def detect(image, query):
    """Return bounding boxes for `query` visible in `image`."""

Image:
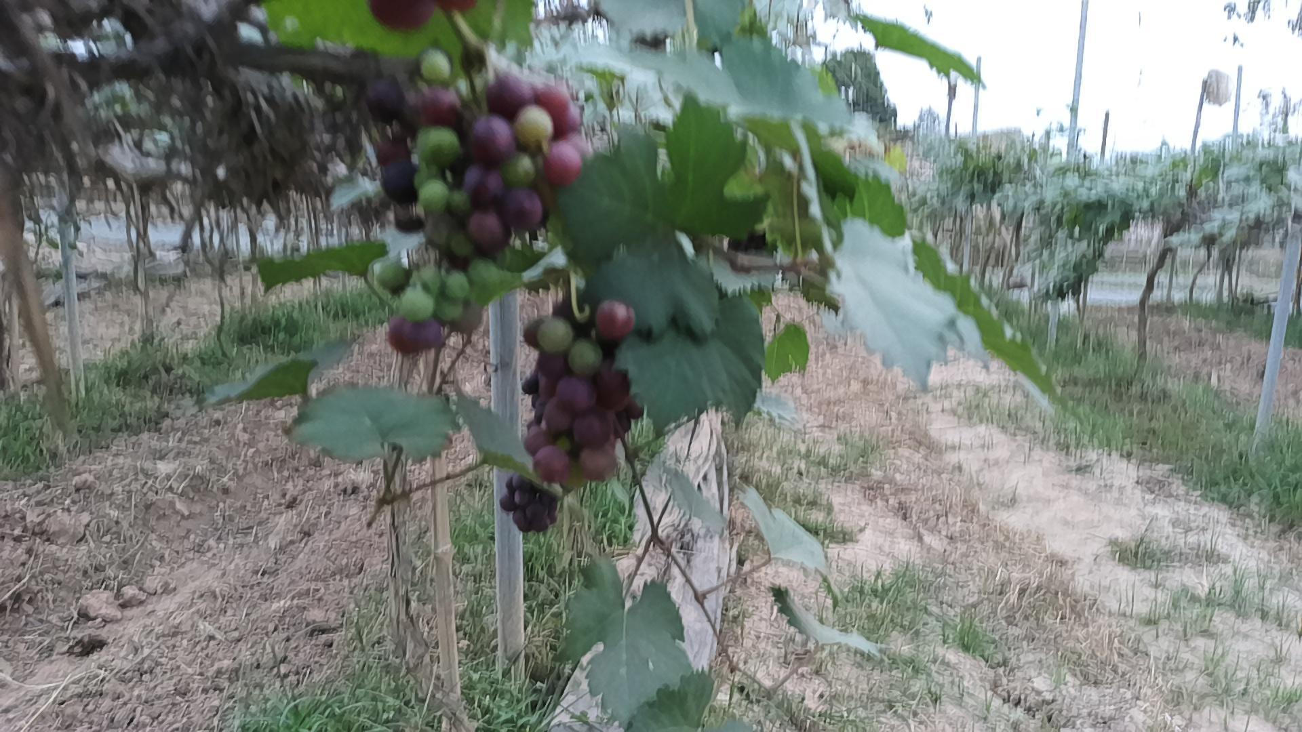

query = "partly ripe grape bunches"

[521,298,642,484]
[366,0,585,354]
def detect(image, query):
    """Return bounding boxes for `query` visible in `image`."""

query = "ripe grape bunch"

[500,474,558,532]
